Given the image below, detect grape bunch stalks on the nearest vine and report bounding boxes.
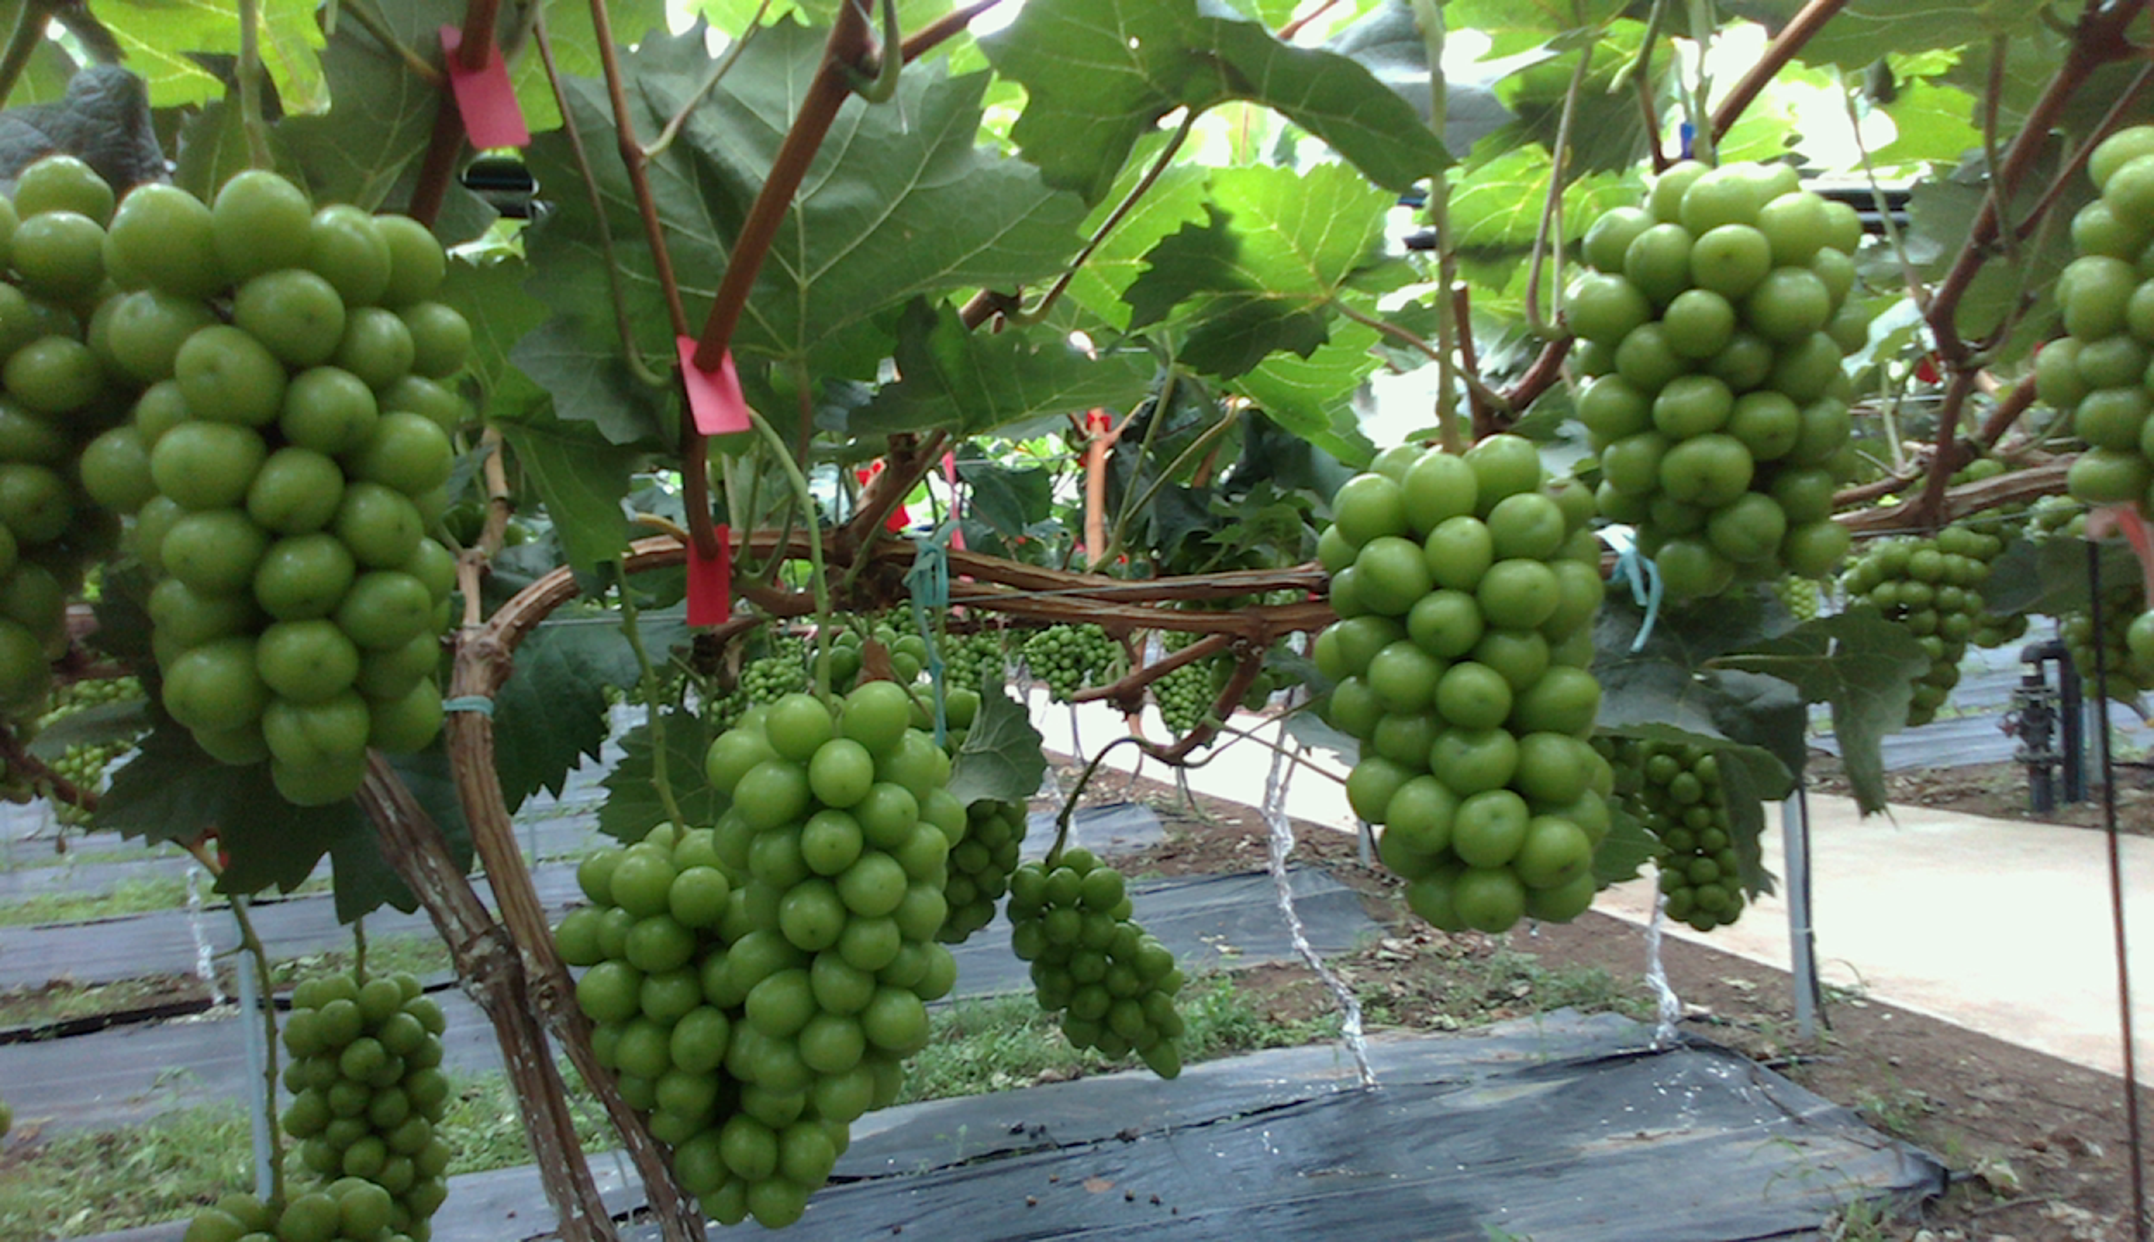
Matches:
[233,2,276,172]
[1408,2,1462,452]
[746,405,834,712]
[608,516,685,844]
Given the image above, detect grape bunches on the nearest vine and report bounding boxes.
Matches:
[81,169,464,802]
[709,681,968,1123]
[1569,162,1871,602]
[559,826,851,1226]
[2037,129,2152,519]
[0,159,110,724]
[1315,436,1617,933]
